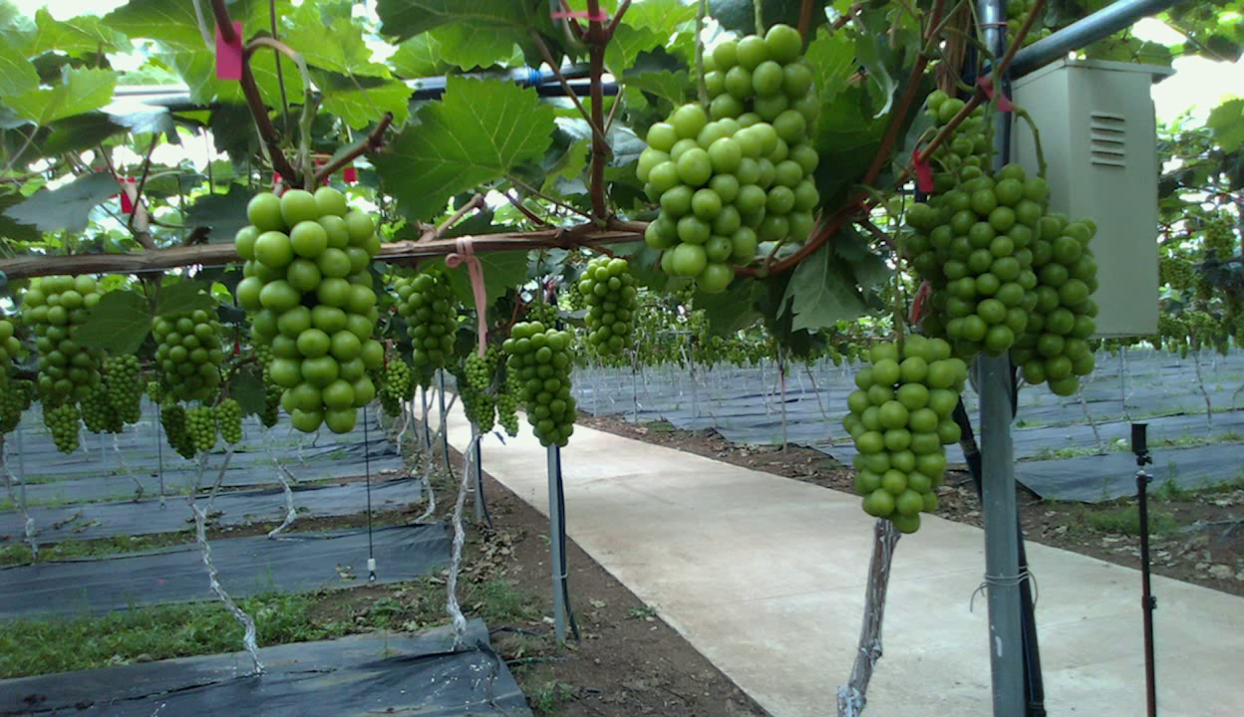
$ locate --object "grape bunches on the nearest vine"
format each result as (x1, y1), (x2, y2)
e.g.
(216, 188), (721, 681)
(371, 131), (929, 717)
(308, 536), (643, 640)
(635, 96), (777, 294)
(903, 161), (1049, 360)
(841, 335), (967, 535)
(702, 23), (820, 242)
(233, 185), (385, 435)
(1011, 212), (1100, 398)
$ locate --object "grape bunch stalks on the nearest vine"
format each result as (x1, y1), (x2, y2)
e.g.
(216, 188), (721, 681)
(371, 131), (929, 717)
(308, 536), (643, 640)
(938, 52), (1051, 217)
(246, 37), (314, 195)
(694, 1), (711, 123)
(852, 183), (905, 362)
(942, 24), (1000, 179)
